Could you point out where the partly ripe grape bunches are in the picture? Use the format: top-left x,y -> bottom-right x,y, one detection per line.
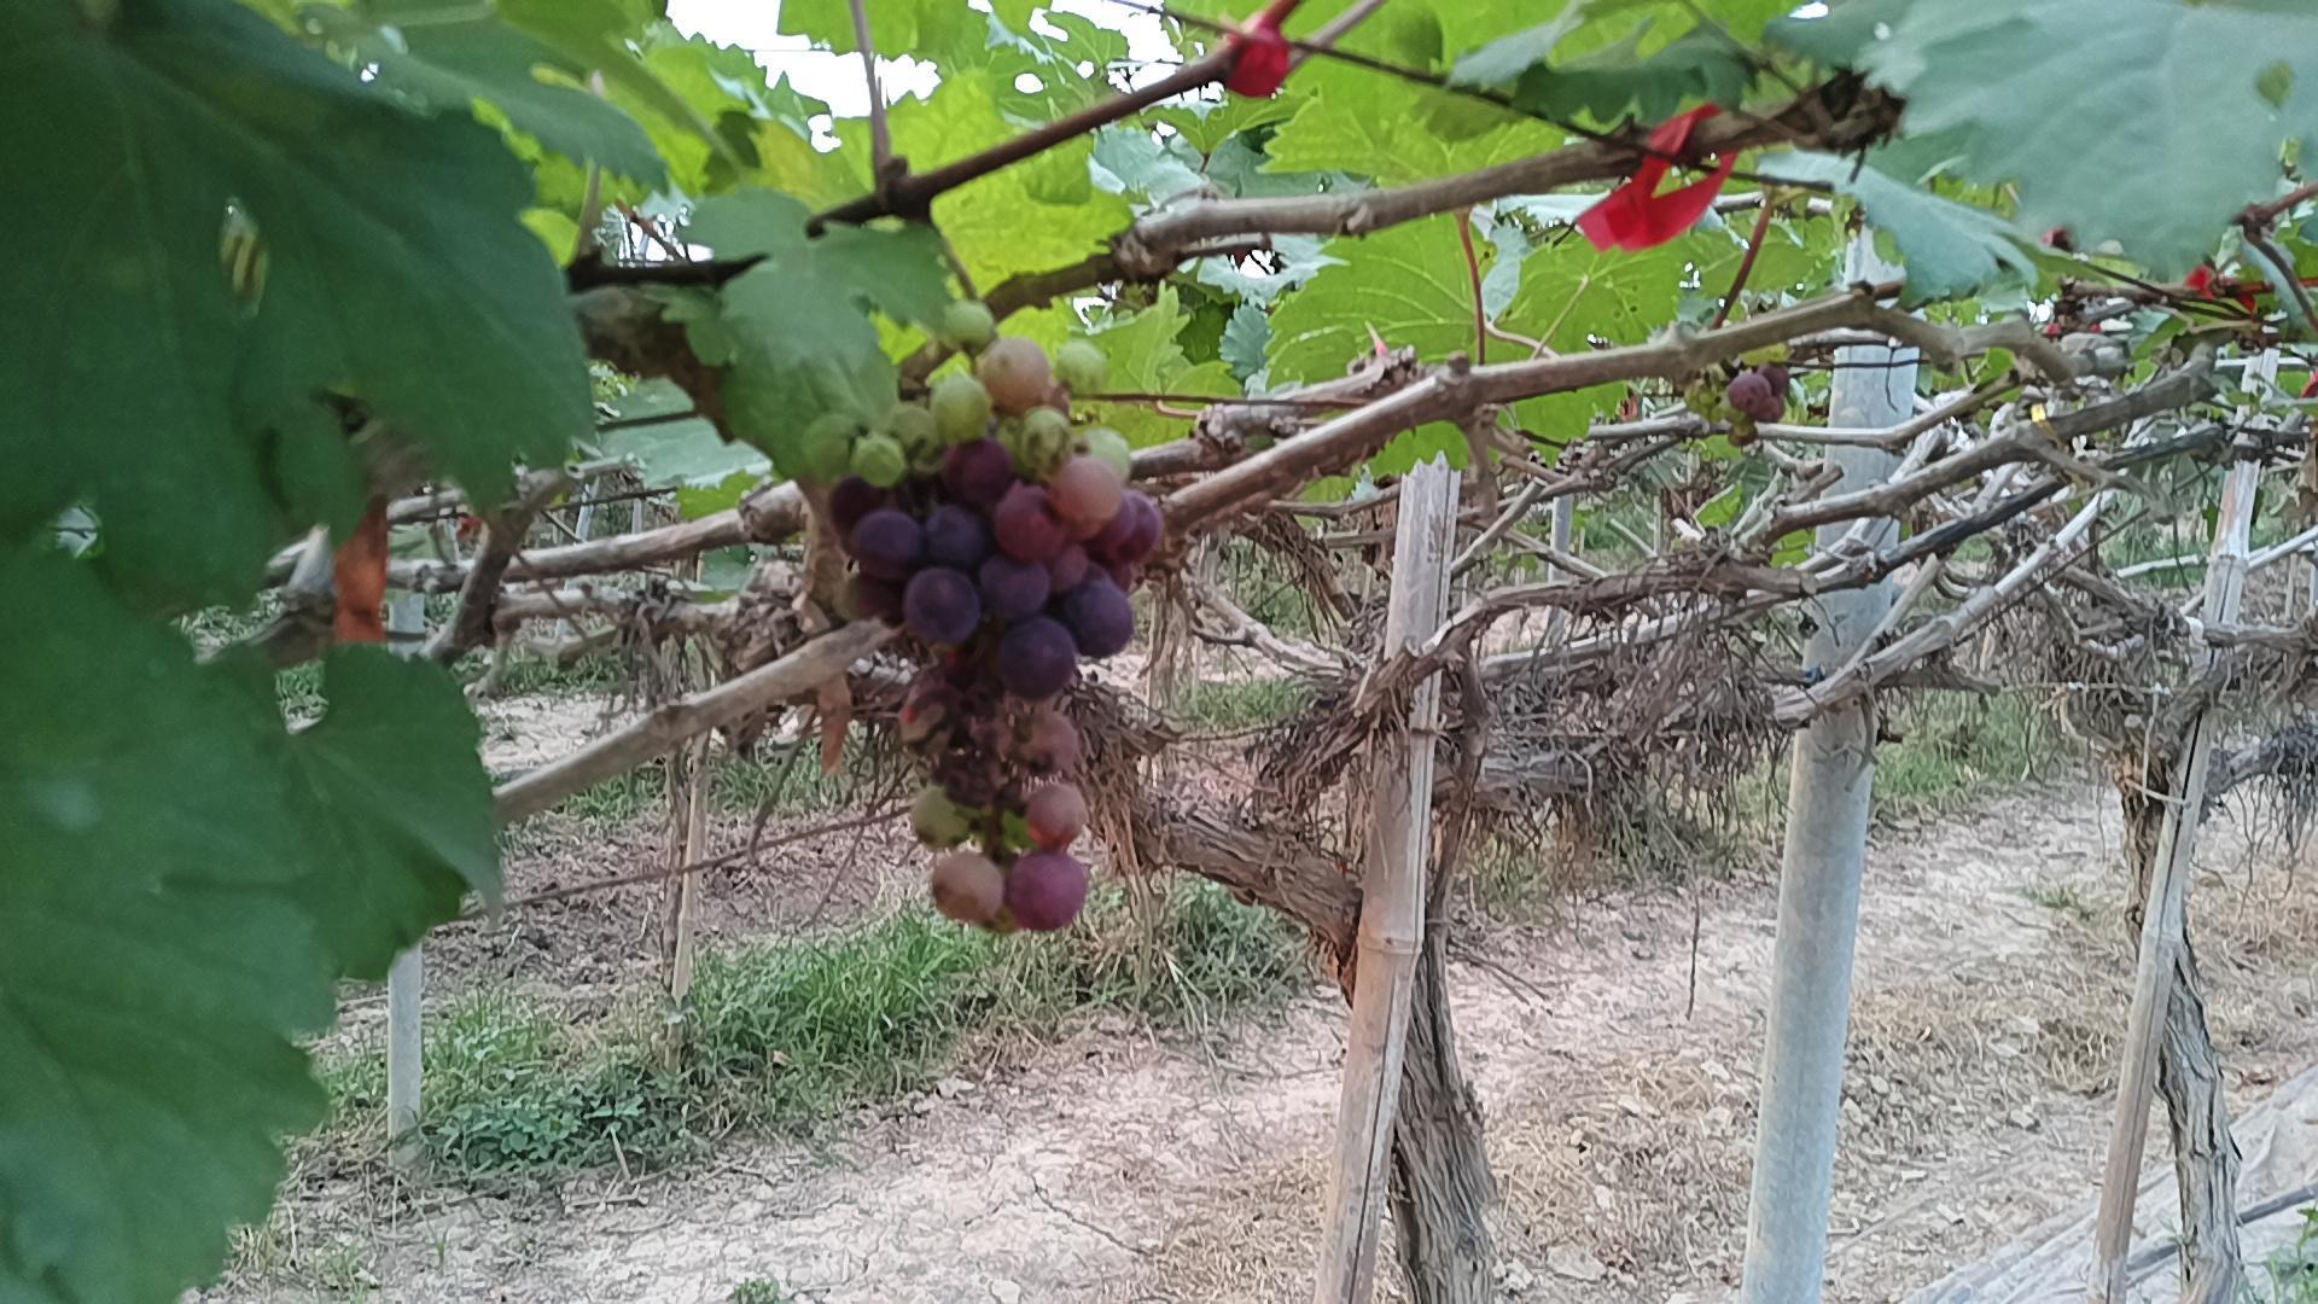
1677,345 -> 1805,447
822,304 -> 1165,932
